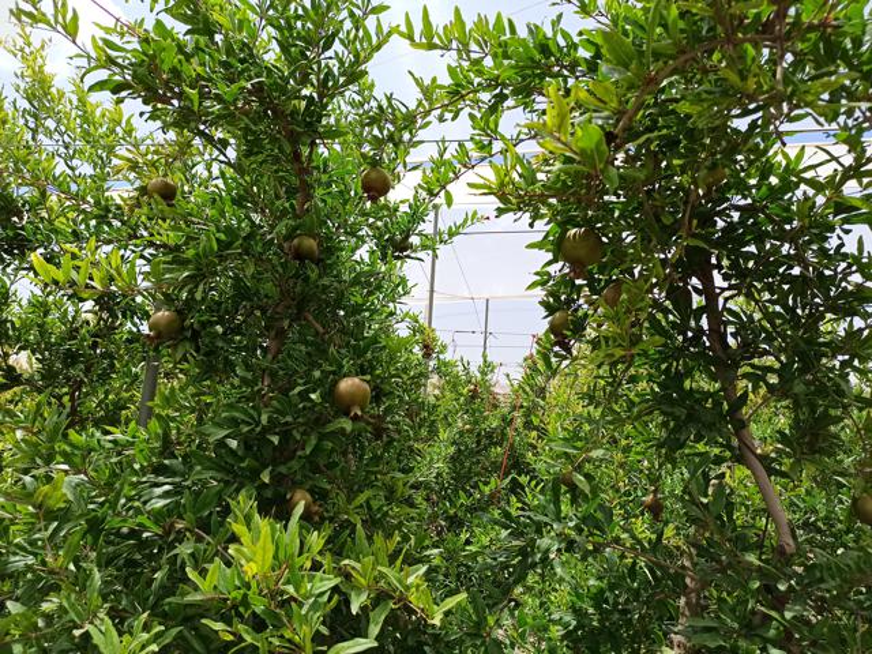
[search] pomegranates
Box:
[360,168,391,202]
[146,177,178,202]
[642,493,666,520]
[560,228,602,278]
[332,376,372,420]
[285,488,322,523]
[143,311,180,343]
[601,281,624,309]
[289,236,317,263]
[854,495,872,523]
[548,308,570,346]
